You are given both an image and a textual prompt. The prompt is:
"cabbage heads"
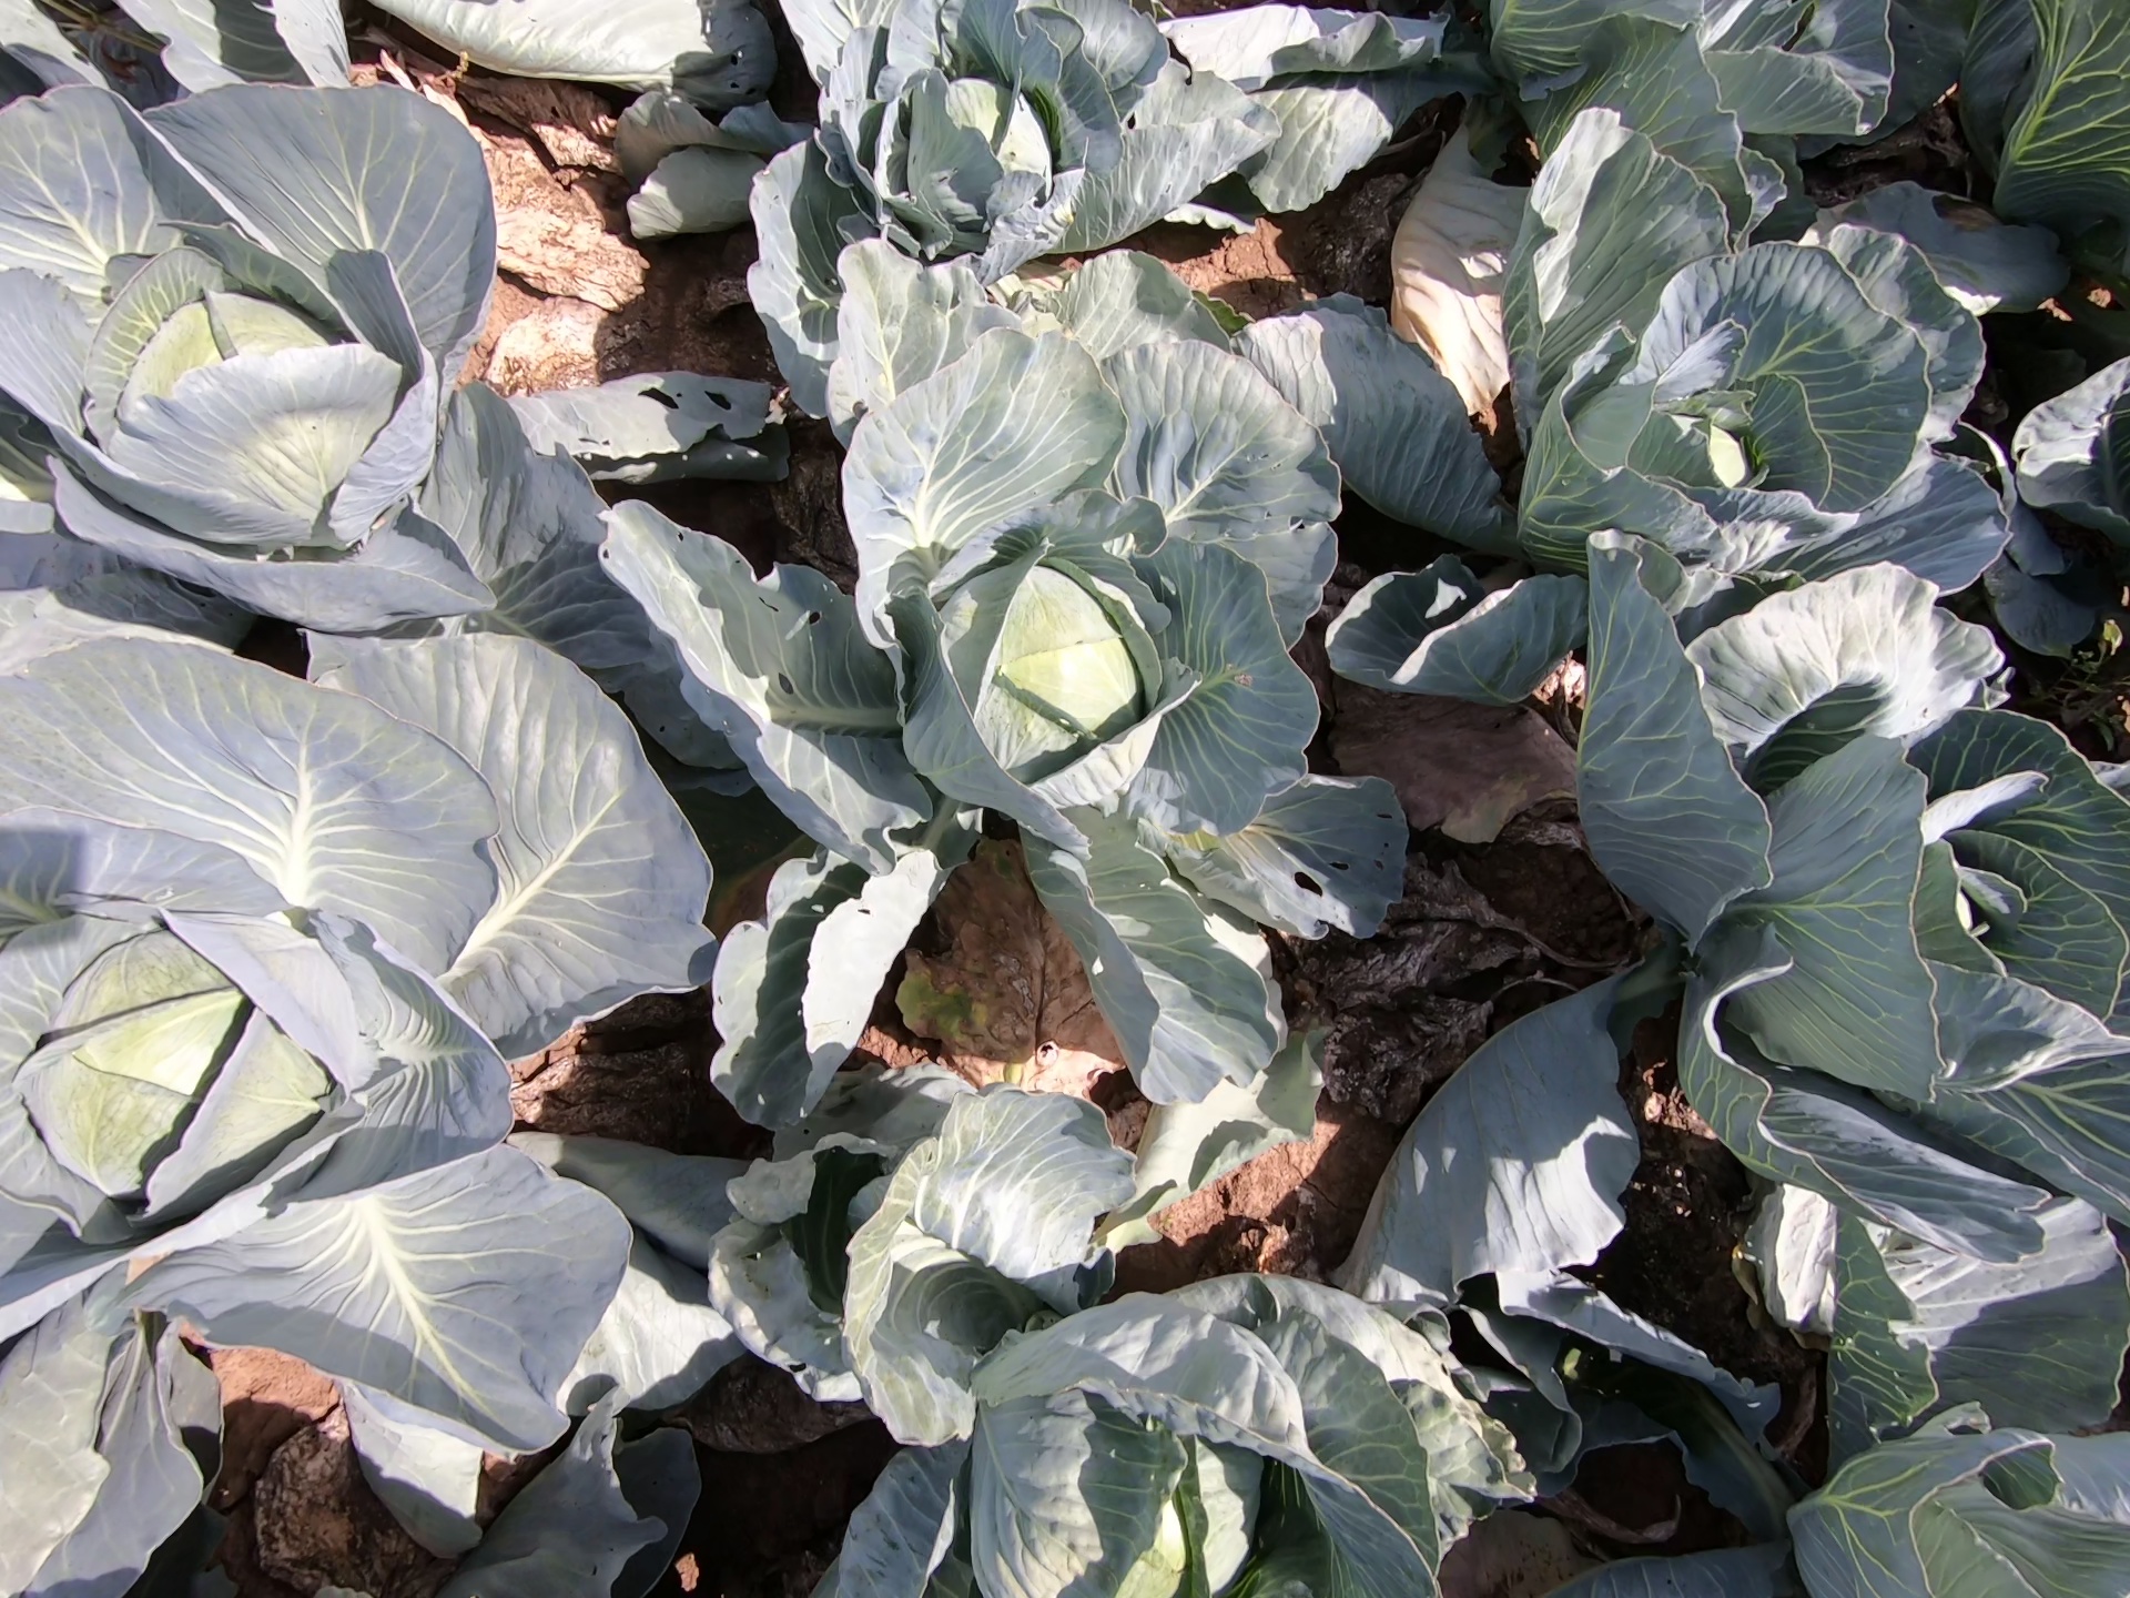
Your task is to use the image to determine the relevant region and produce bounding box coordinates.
[904,75,1057,225]
[21,926,344,1216]
[970,1308,1258,1596]
[1812,863,1979,1010]
[911,559,1159,806]
[1590,403,1756,542]
[106,289,390,547]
